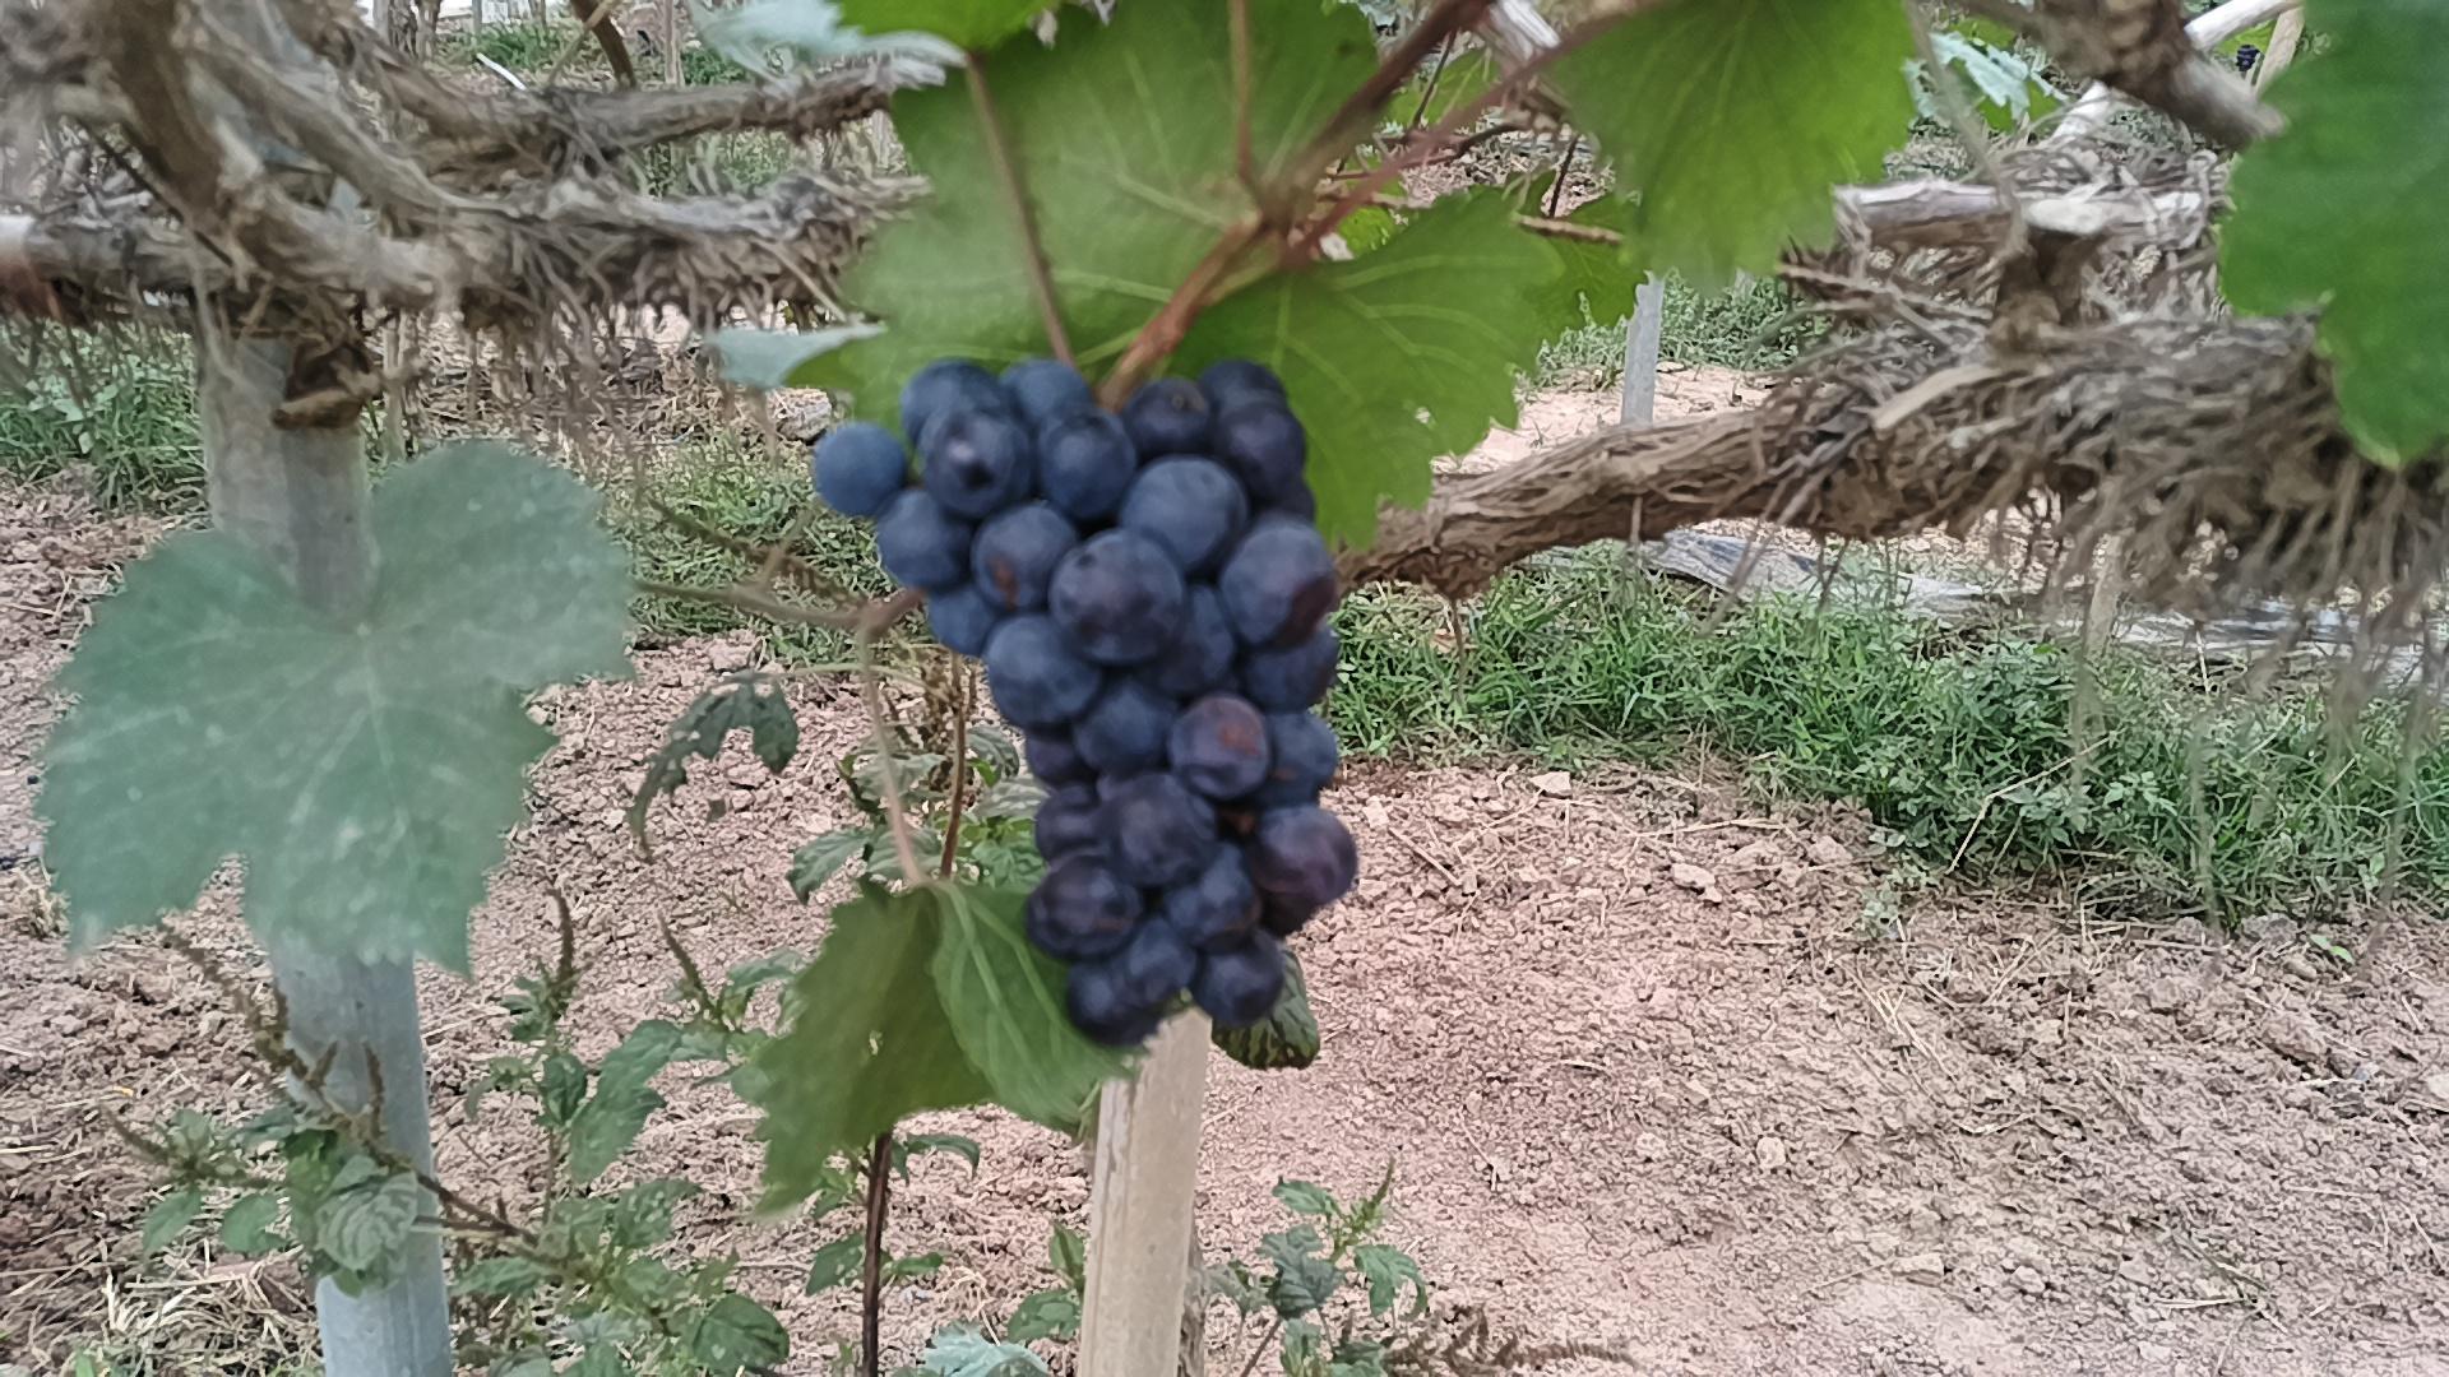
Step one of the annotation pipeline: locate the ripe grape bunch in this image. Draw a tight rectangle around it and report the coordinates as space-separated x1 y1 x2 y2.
814 360 1357 1044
